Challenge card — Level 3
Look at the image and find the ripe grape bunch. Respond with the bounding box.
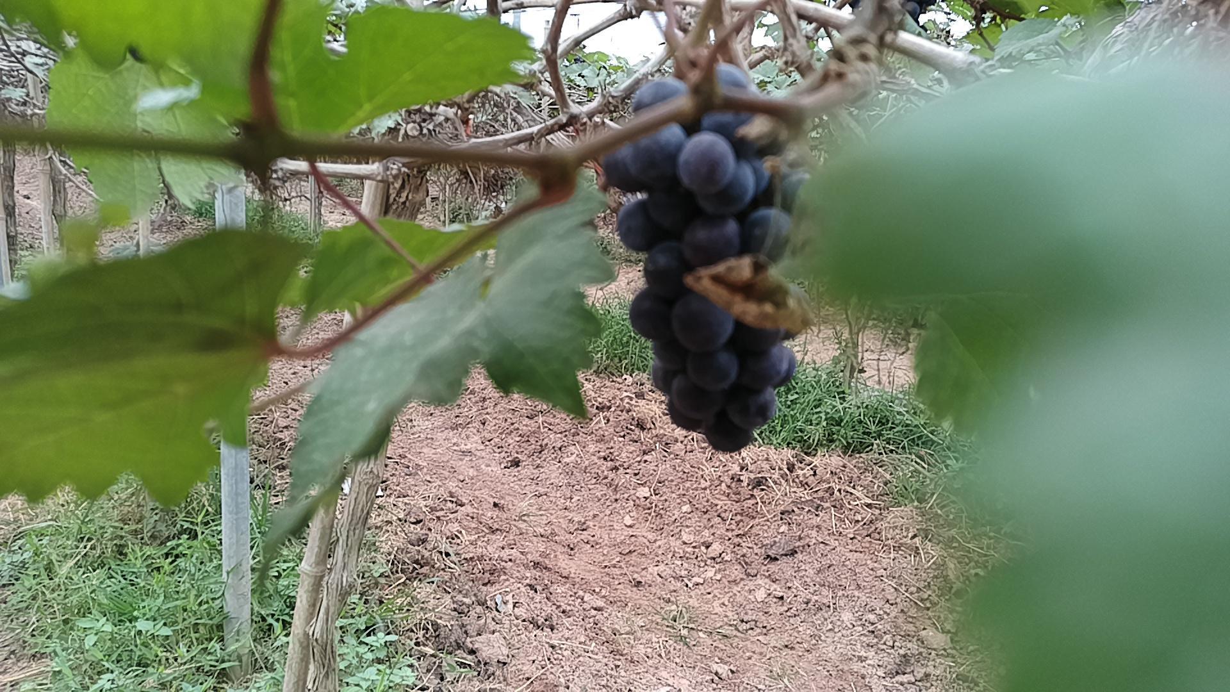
[601,63,796,451]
